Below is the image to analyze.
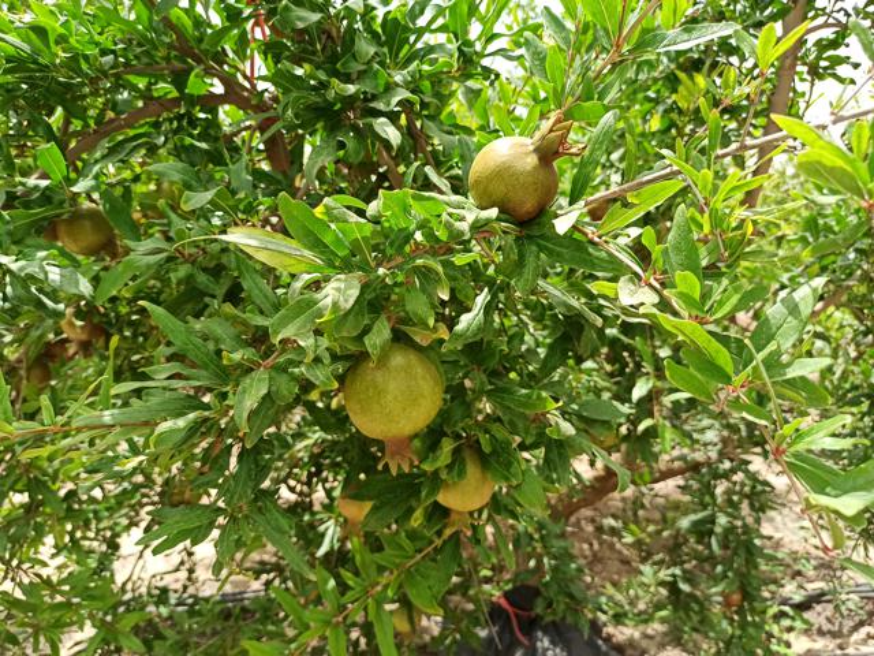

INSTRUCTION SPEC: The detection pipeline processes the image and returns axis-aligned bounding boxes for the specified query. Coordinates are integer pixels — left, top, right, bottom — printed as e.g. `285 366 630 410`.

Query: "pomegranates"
337 497 371 526
27 362 48 394
60 306 102 342
343 343 442 477
392 610 415 637
468 108 586 224
720 589 744 619
56 212 119 261
436 446 493 538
